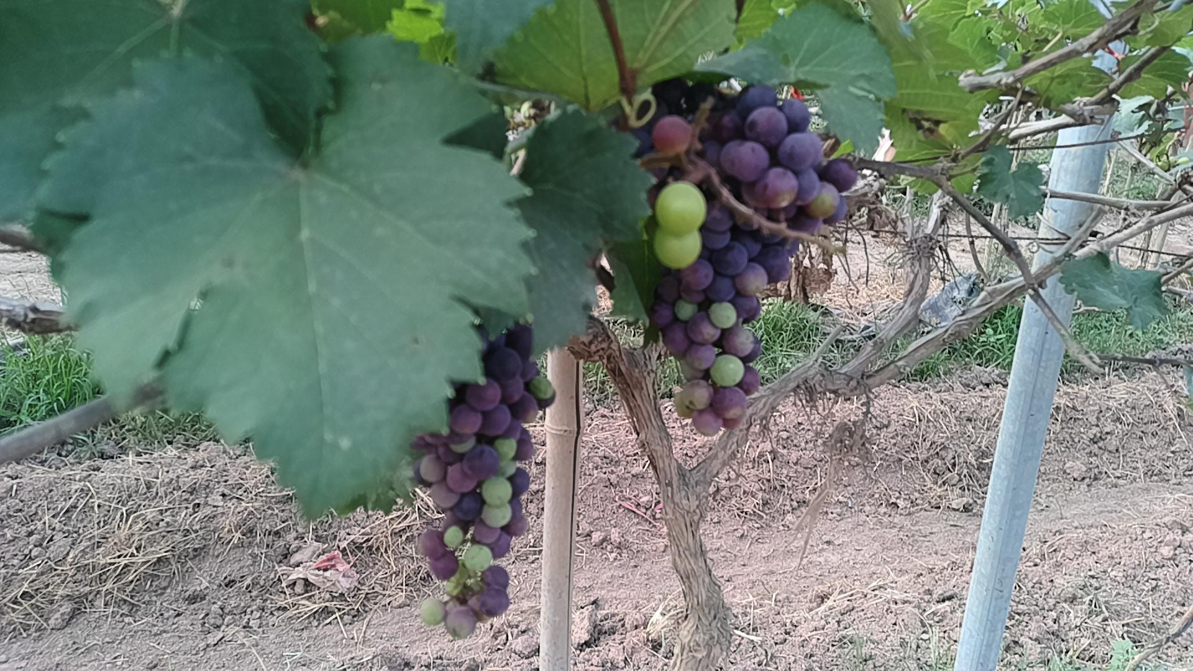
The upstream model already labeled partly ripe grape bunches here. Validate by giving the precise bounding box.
[412,323,554,637]
[629,79,856,436]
